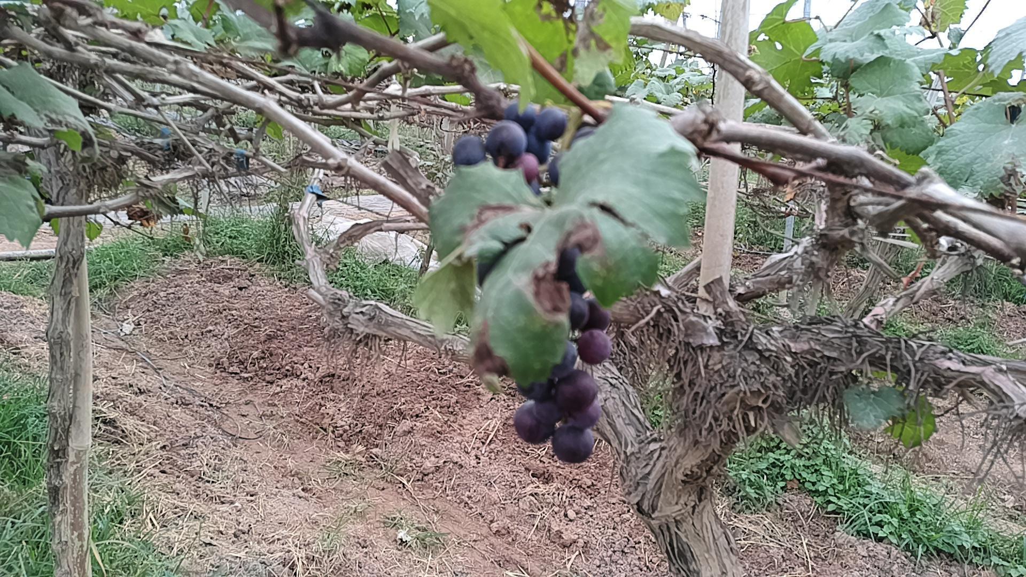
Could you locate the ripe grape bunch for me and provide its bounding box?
[418,103,704,463]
